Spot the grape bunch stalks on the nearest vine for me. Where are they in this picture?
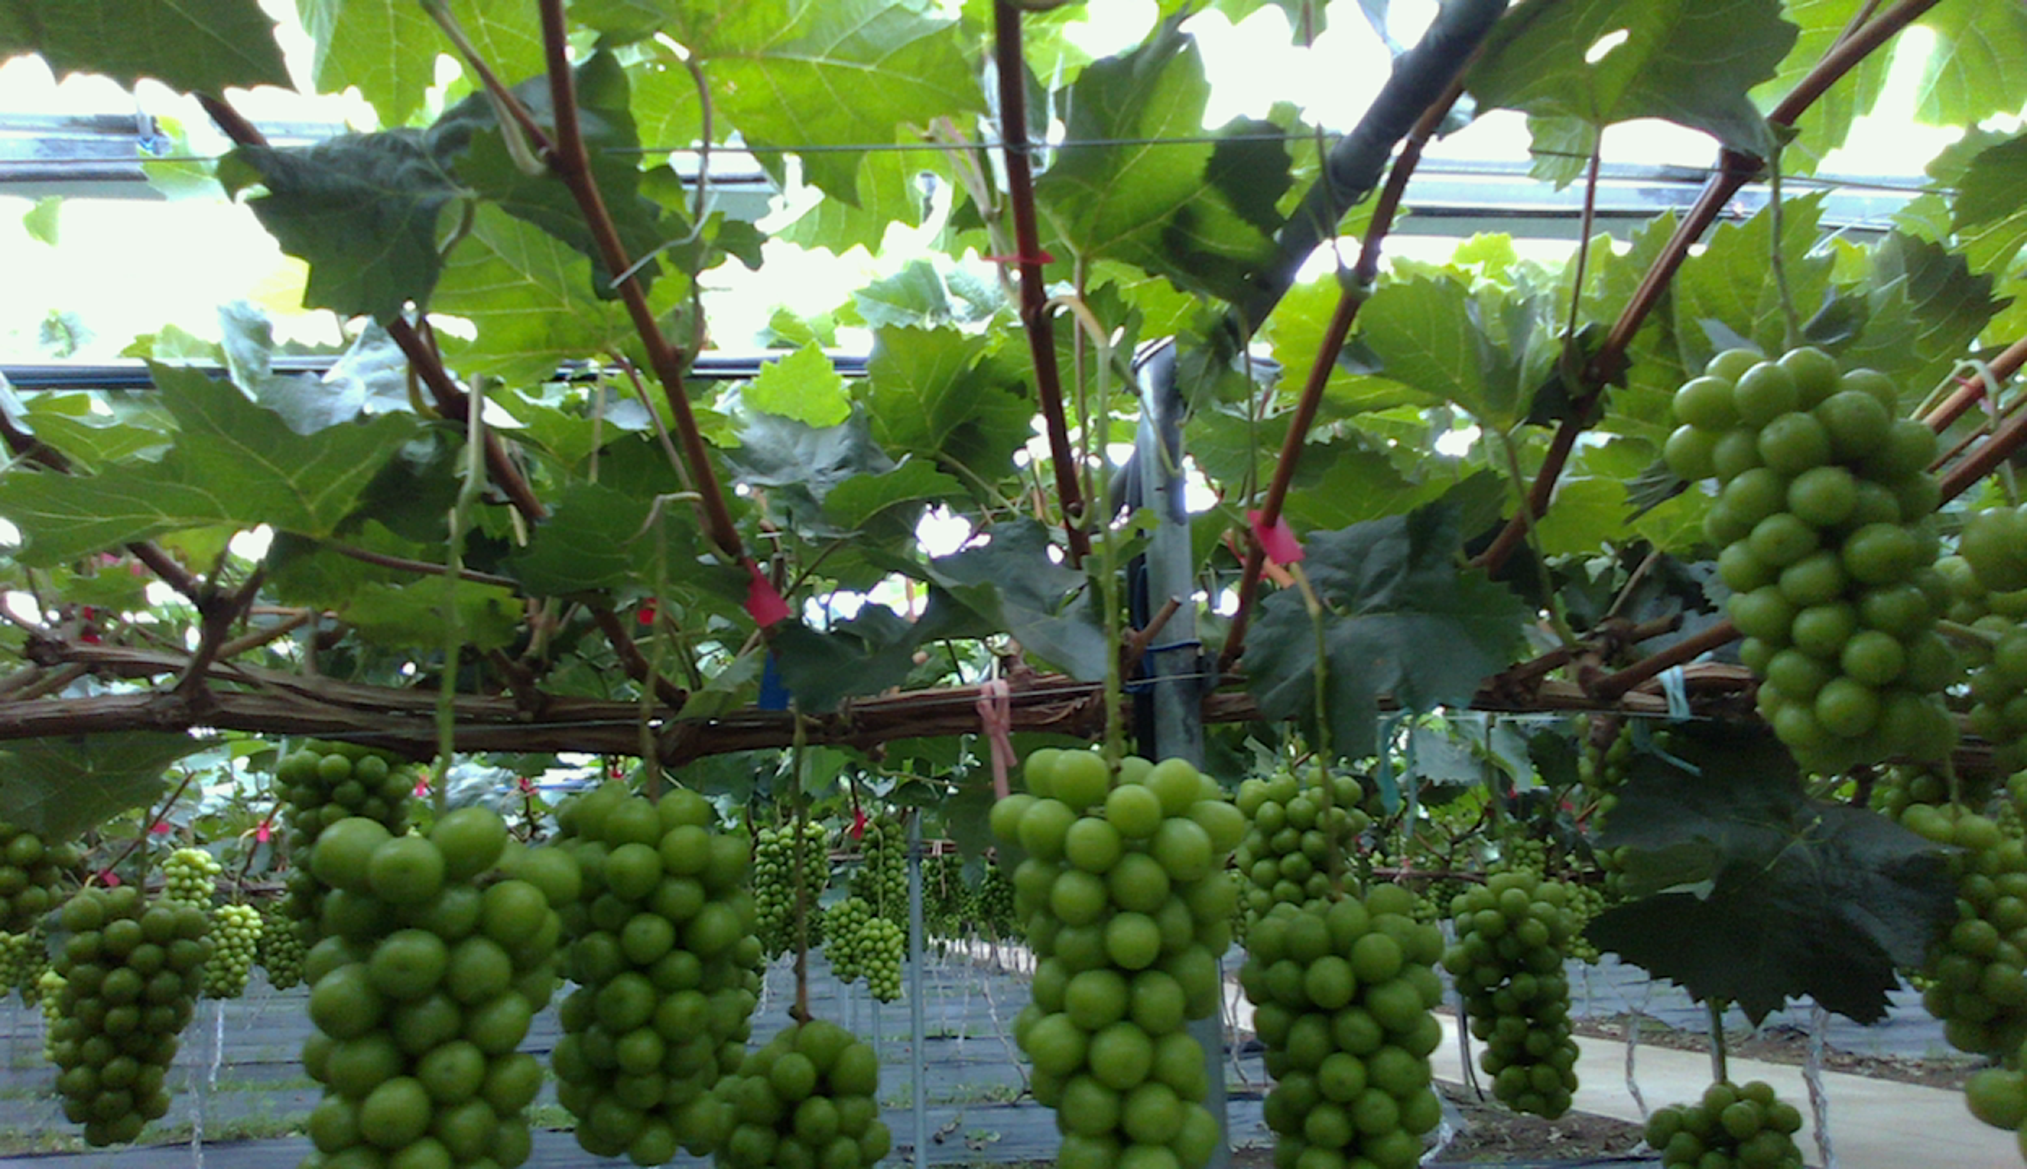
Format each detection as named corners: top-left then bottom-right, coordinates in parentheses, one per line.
top-left (1061, 297), bottom-right (1143, 787)
top-left (1291, 565), bottom-right (1343, 896)
top-left (637, 492), bottom-right (703, 800)
top-left (789, 714), bottom-right (814, 1024)
top-left (435, 373), bottom-right (494, 817)
top-left (1769, 151), bottom-right (1801, 347)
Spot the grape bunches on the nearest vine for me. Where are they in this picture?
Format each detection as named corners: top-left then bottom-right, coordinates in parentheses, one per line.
top-left (549, 781), bottom-right (763, 1167)
top-left (1662, 346), bottom-right (1957, 773)
top-left (988, 745), bottom-right (1244, 1167)
top-left (297, 810), bottom-right (578, 1167)
top-left (1239, 883), bottom-right (1446, 1167)
top-left (715, 1023), bottom-right (892, 1167)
